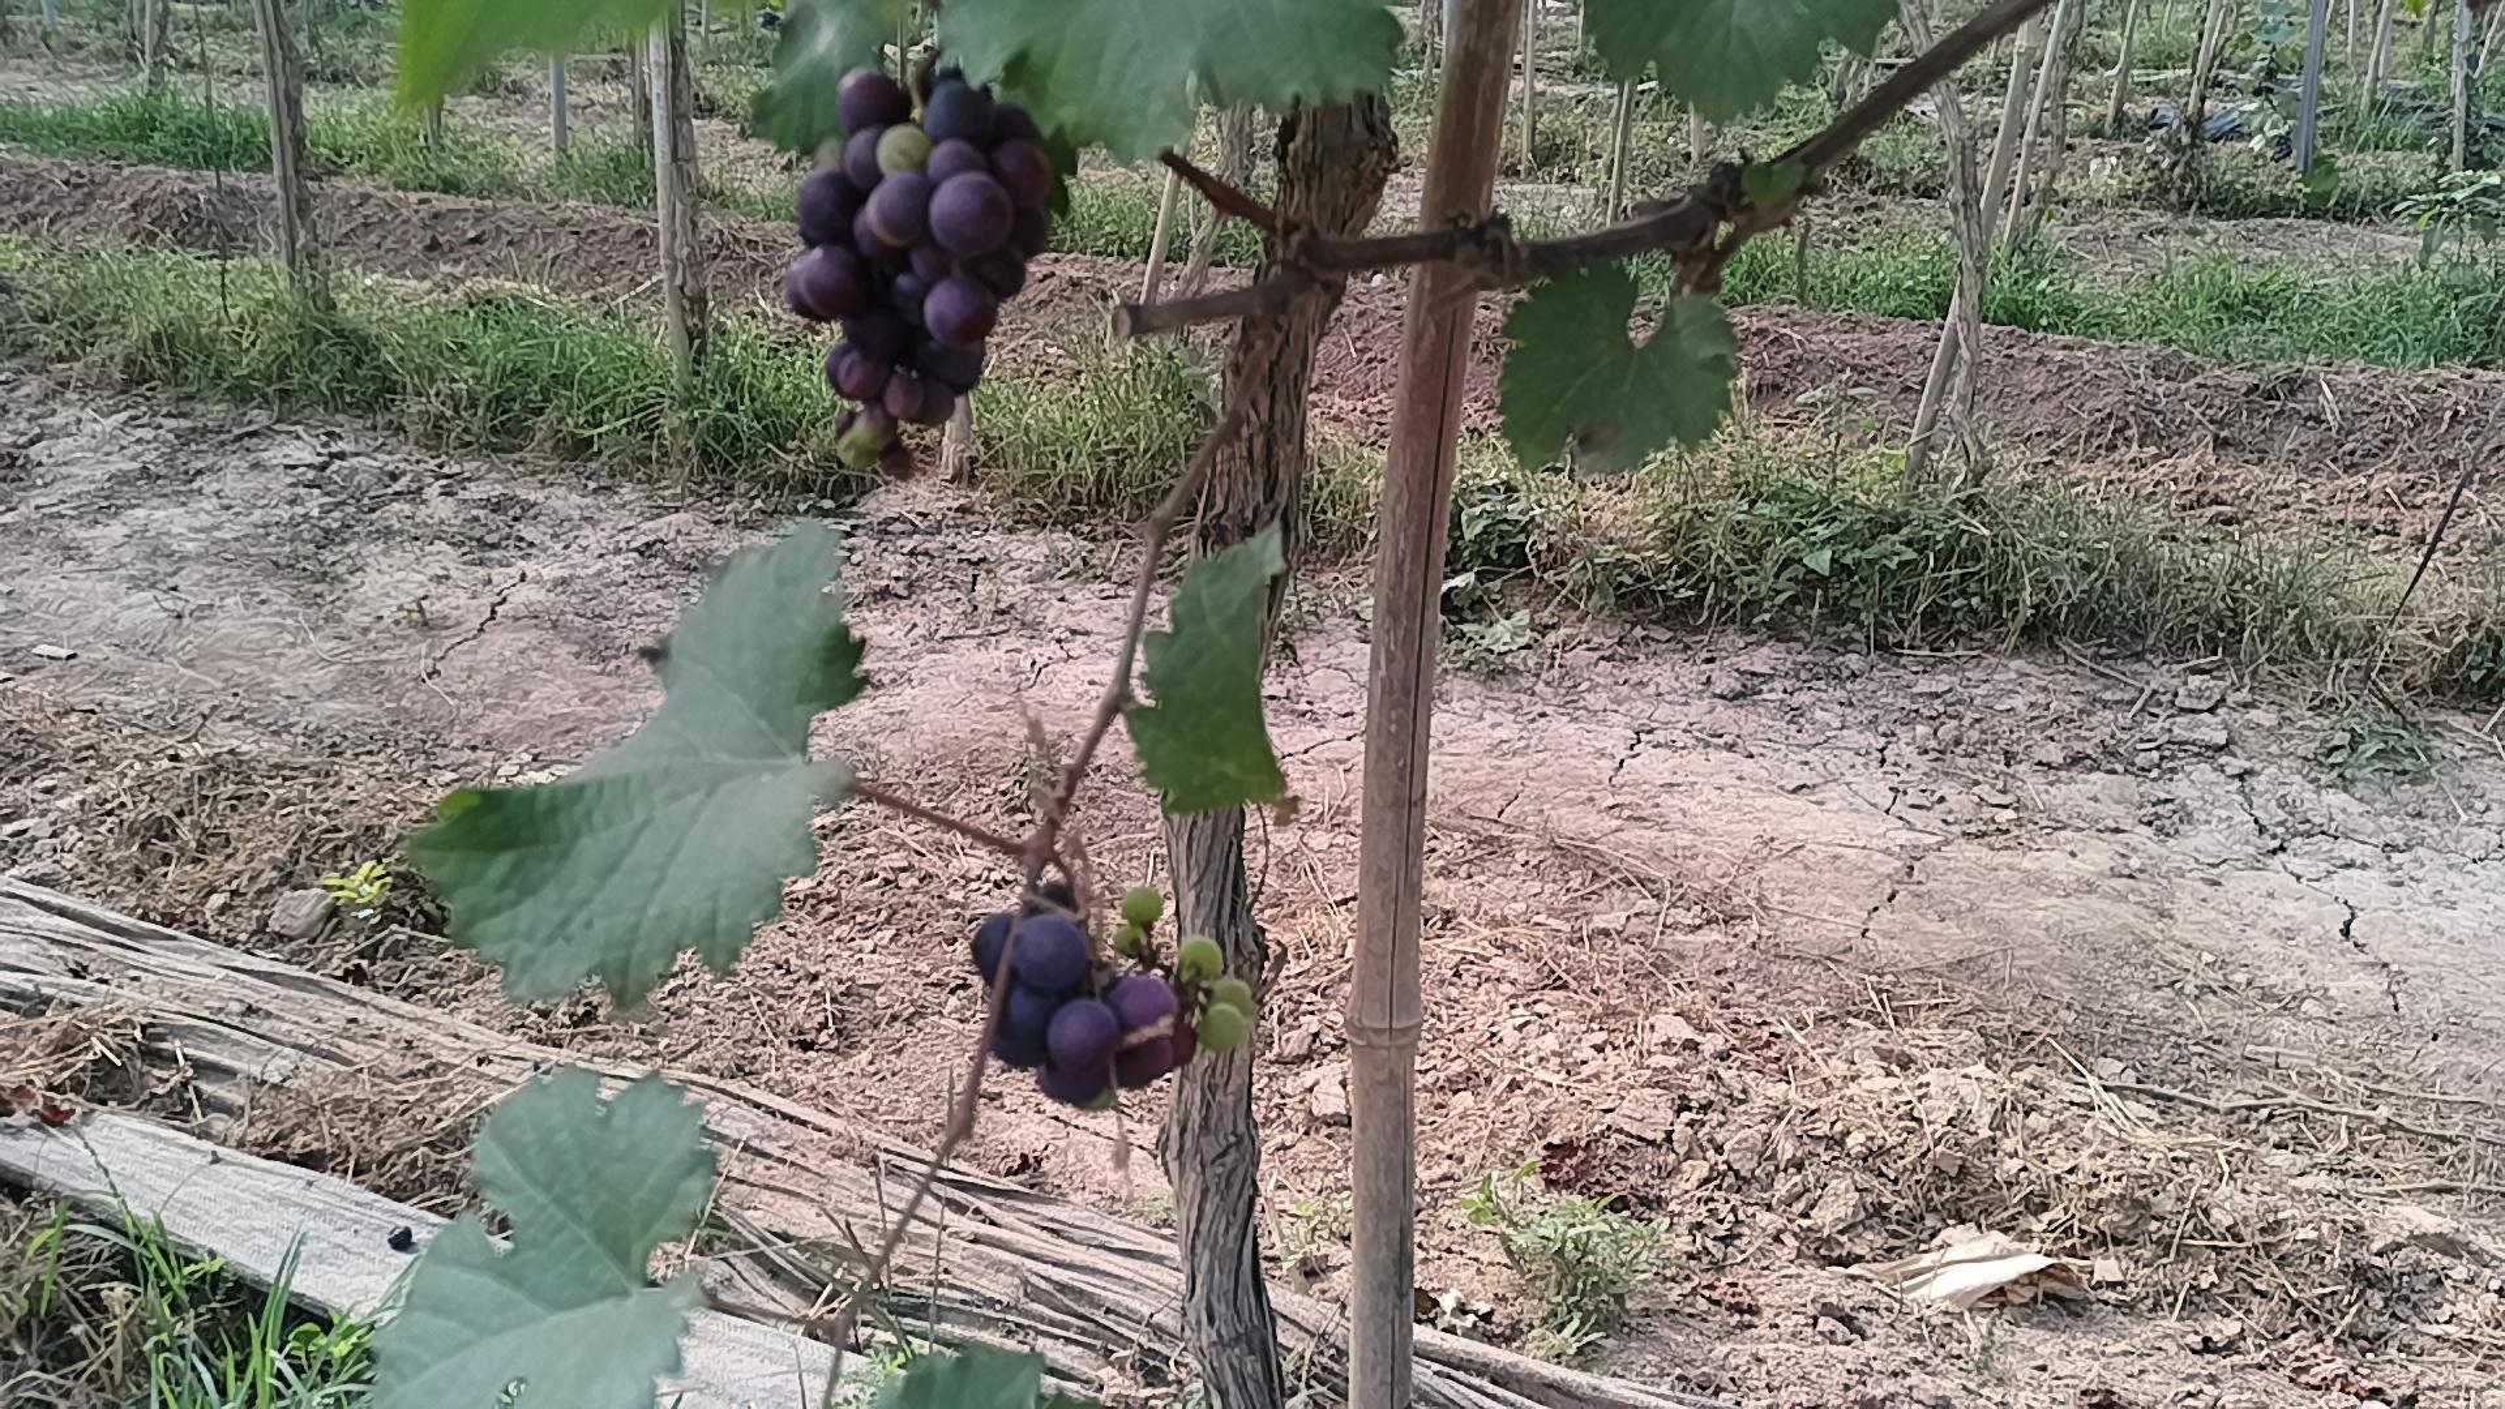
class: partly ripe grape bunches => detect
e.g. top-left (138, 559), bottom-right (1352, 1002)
top-left (972, 881), bottom-right (1254, 1108)
top-left (785, 68), bottom-right (1053, 476)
